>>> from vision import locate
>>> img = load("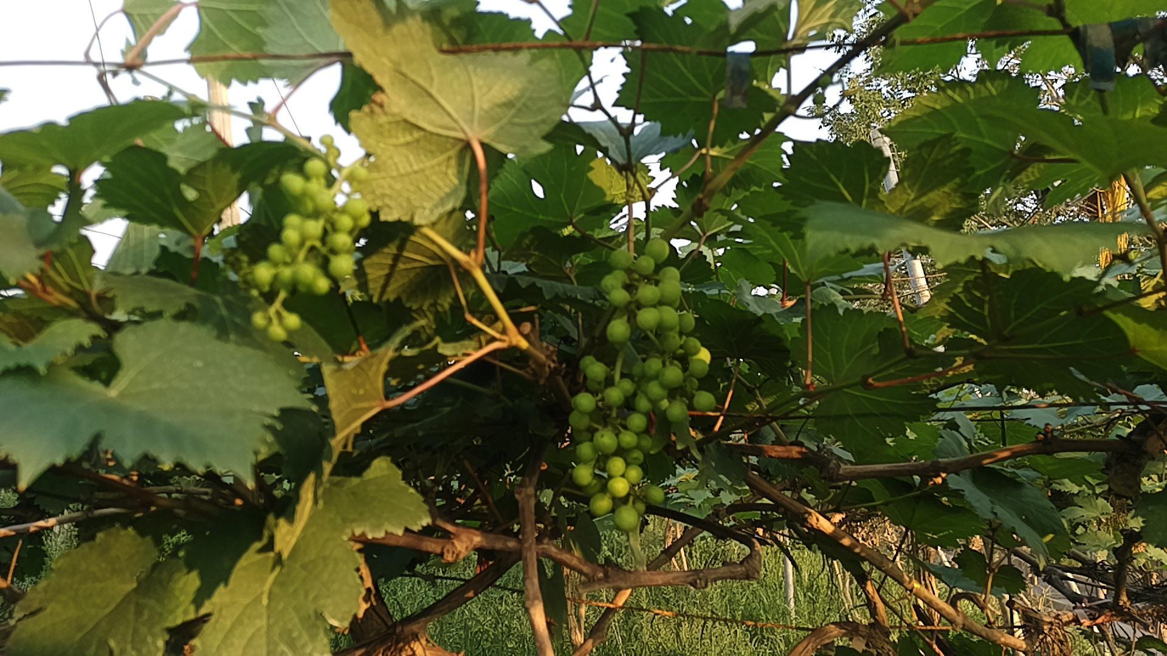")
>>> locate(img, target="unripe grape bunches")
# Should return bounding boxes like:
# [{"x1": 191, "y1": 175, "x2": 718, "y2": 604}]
[
  {"x1": 239, "y1": 135, "x2": 370, "y2": 341},
  {"x1": 570, "y1": 237, "x2": 716, "y2": 545}
]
